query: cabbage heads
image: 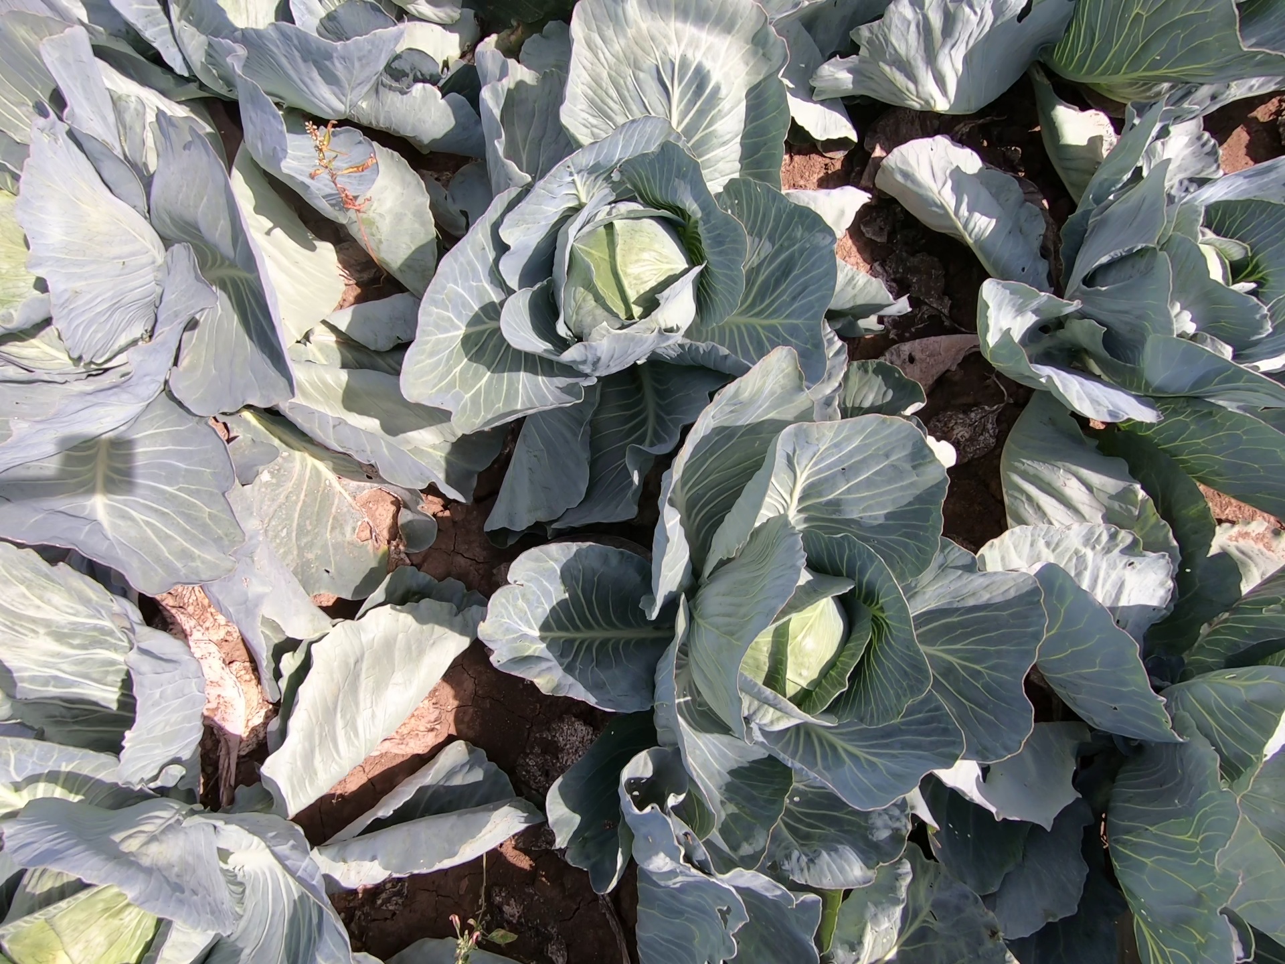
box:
[557,202,699,352]
[696,559,852,734]
[1139,227,1233,332]
[1,815,227,962]
[1,187,71,331]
